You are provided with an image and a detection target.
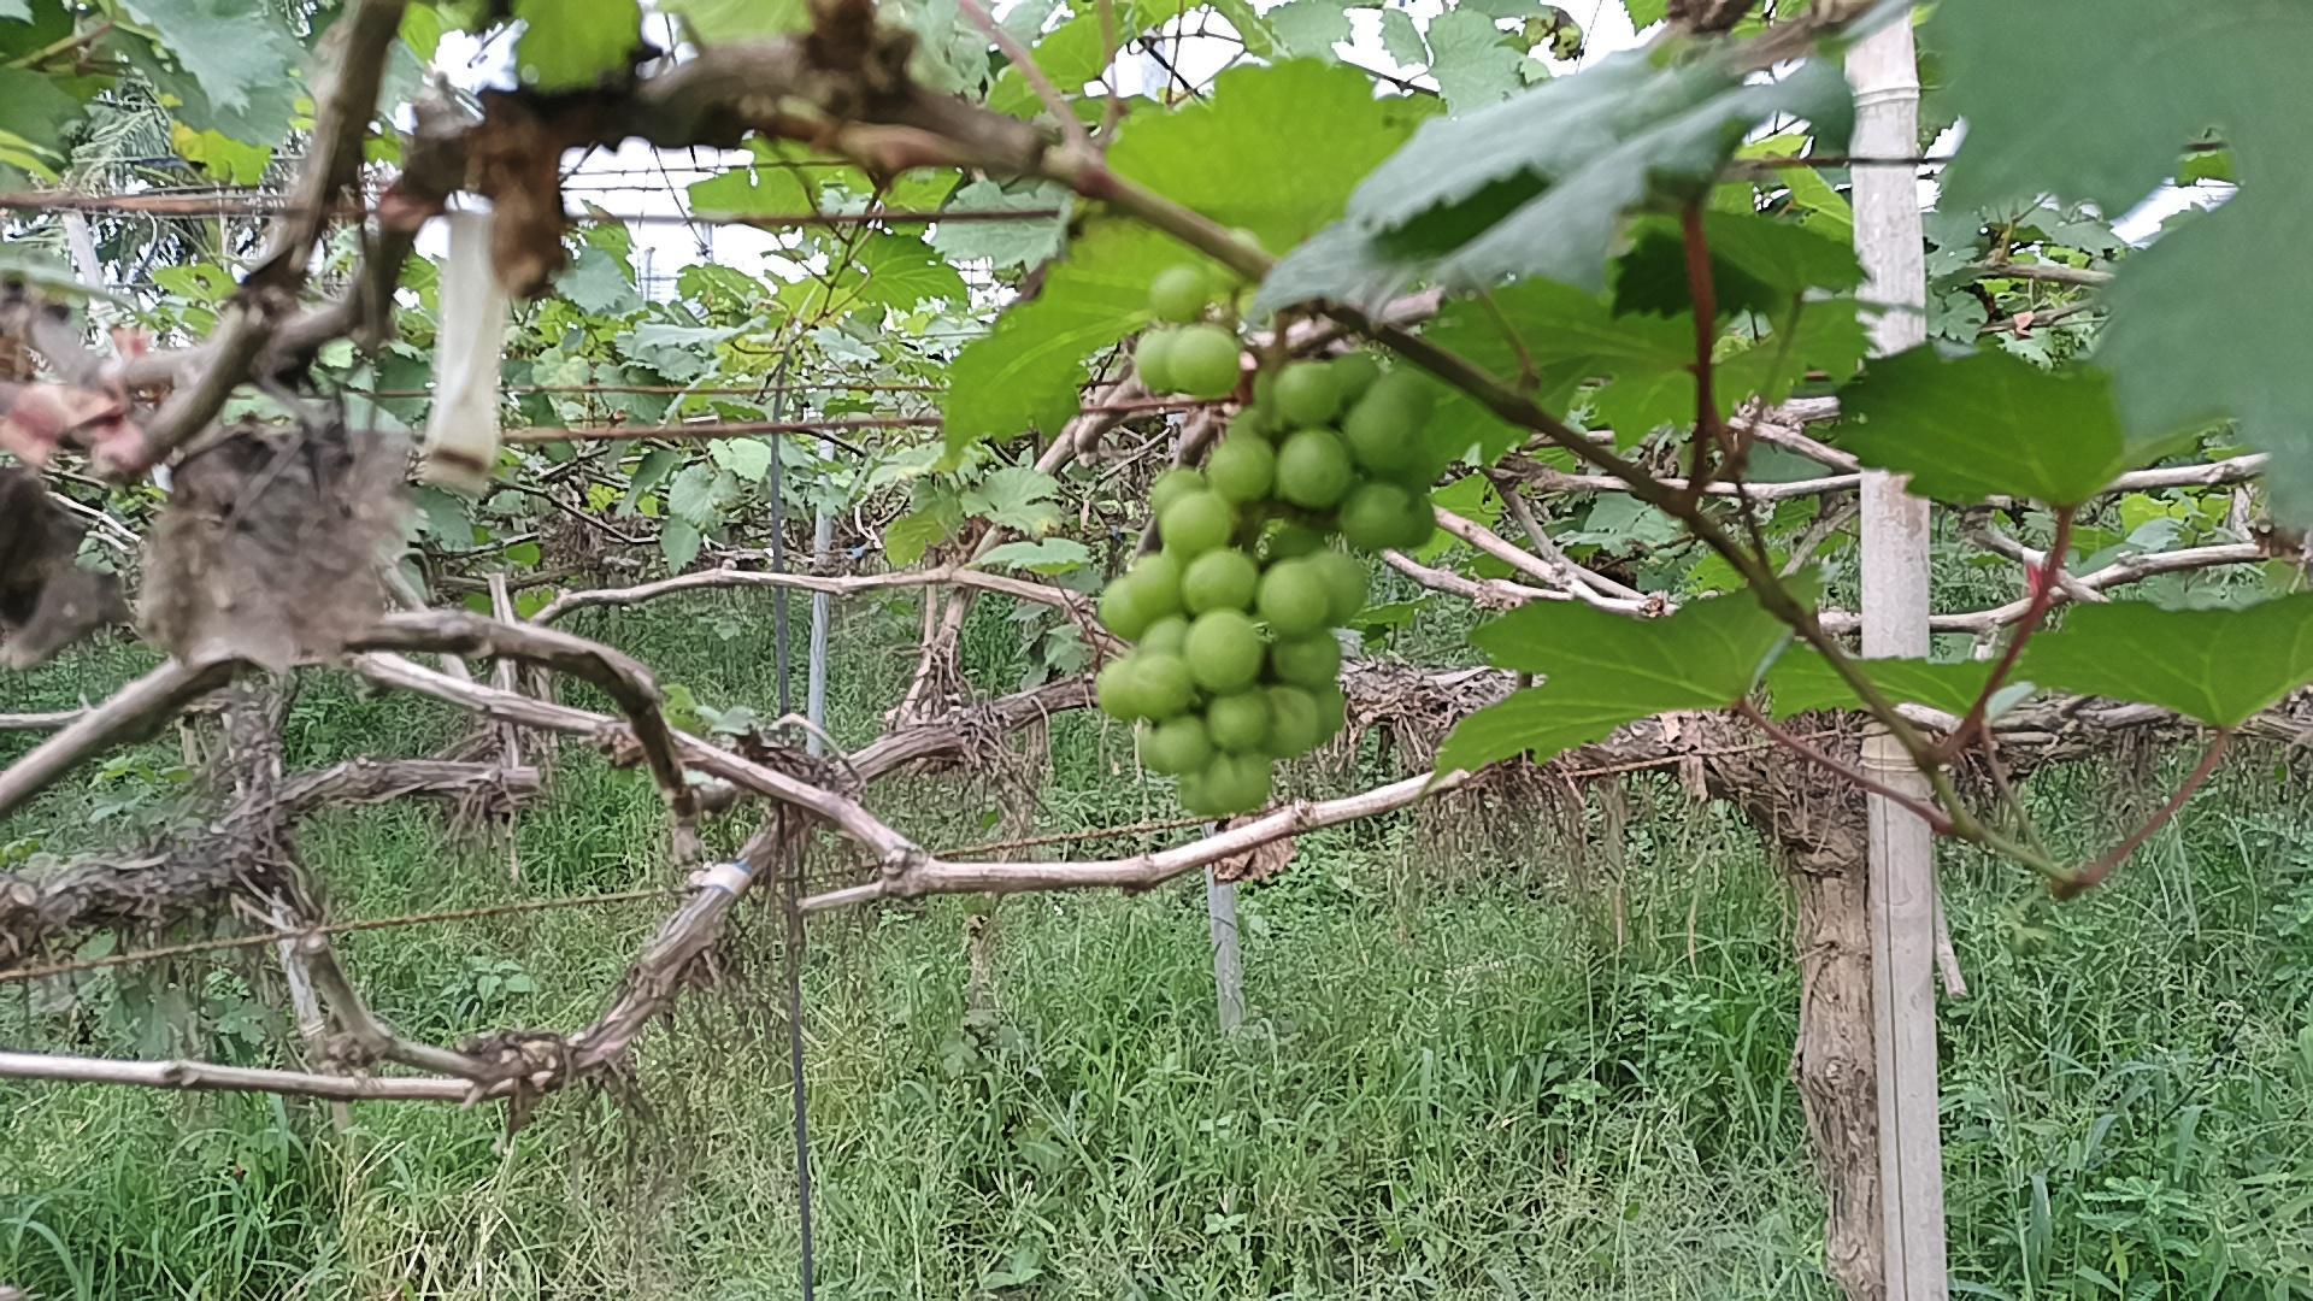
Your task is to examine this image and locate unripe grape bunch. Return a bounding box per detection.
[1096,263,1434,816]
